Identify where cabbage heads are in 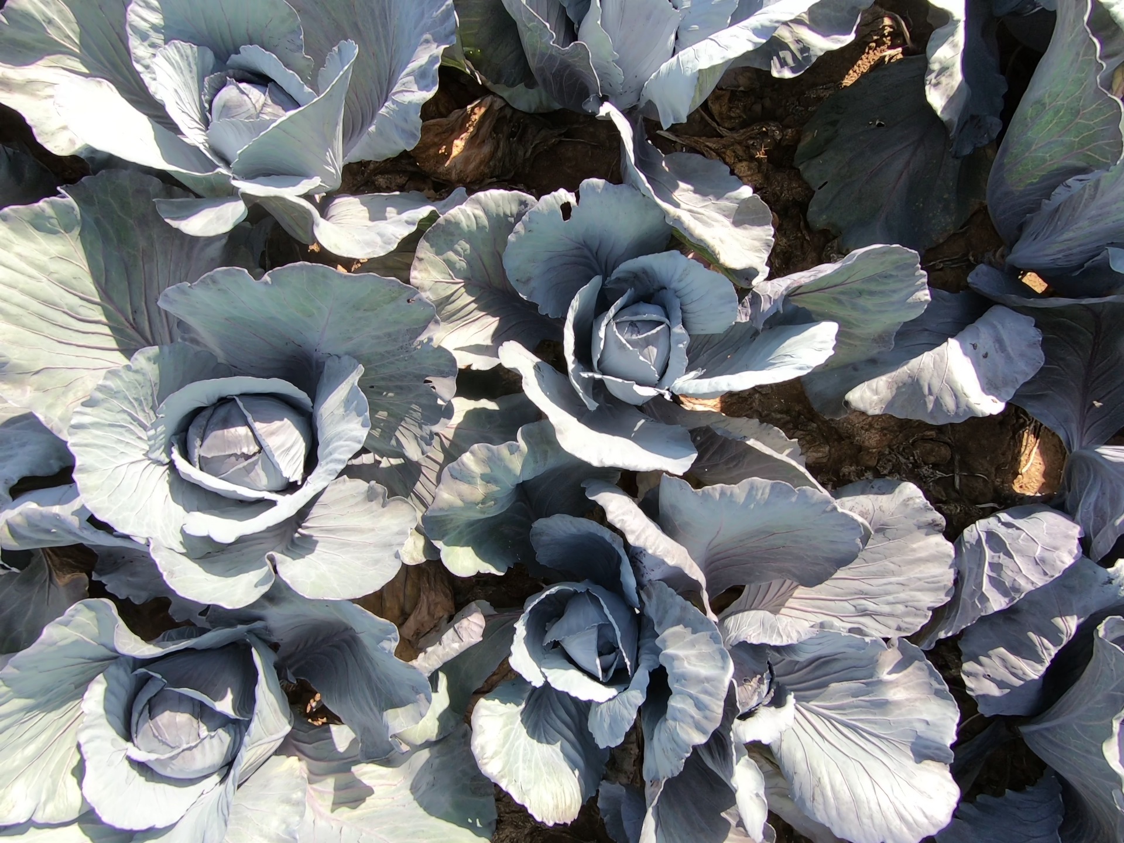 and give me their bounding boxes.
[700,643,773,717]
[567,594,635,667]
[604,304,671,383]
[577,2,671,102]
[187,399,304,496]
[212,80,300,172]
[133,659,248,778]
